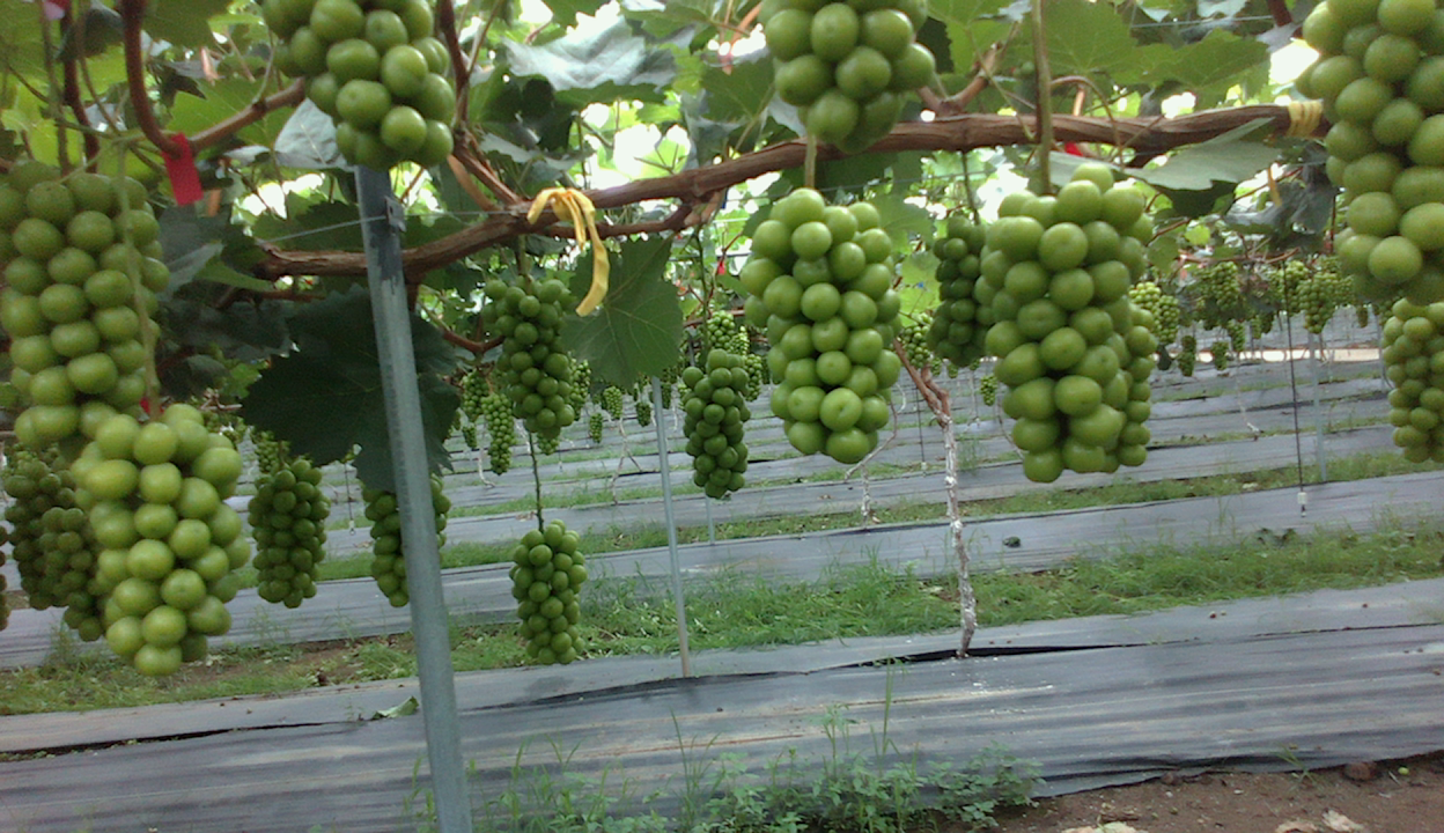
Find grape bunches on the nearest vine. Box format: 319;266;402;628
67;405;252;676
0;161;171;460
738;189;901;463
1297;0;1443;305
759;1;929;154
975;165;1154;482
256;1;454;168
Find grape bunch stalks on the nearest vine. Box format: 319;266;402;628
35;1;71;179
1031;1;1052;194
117;132;160;420
806;137;816;185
